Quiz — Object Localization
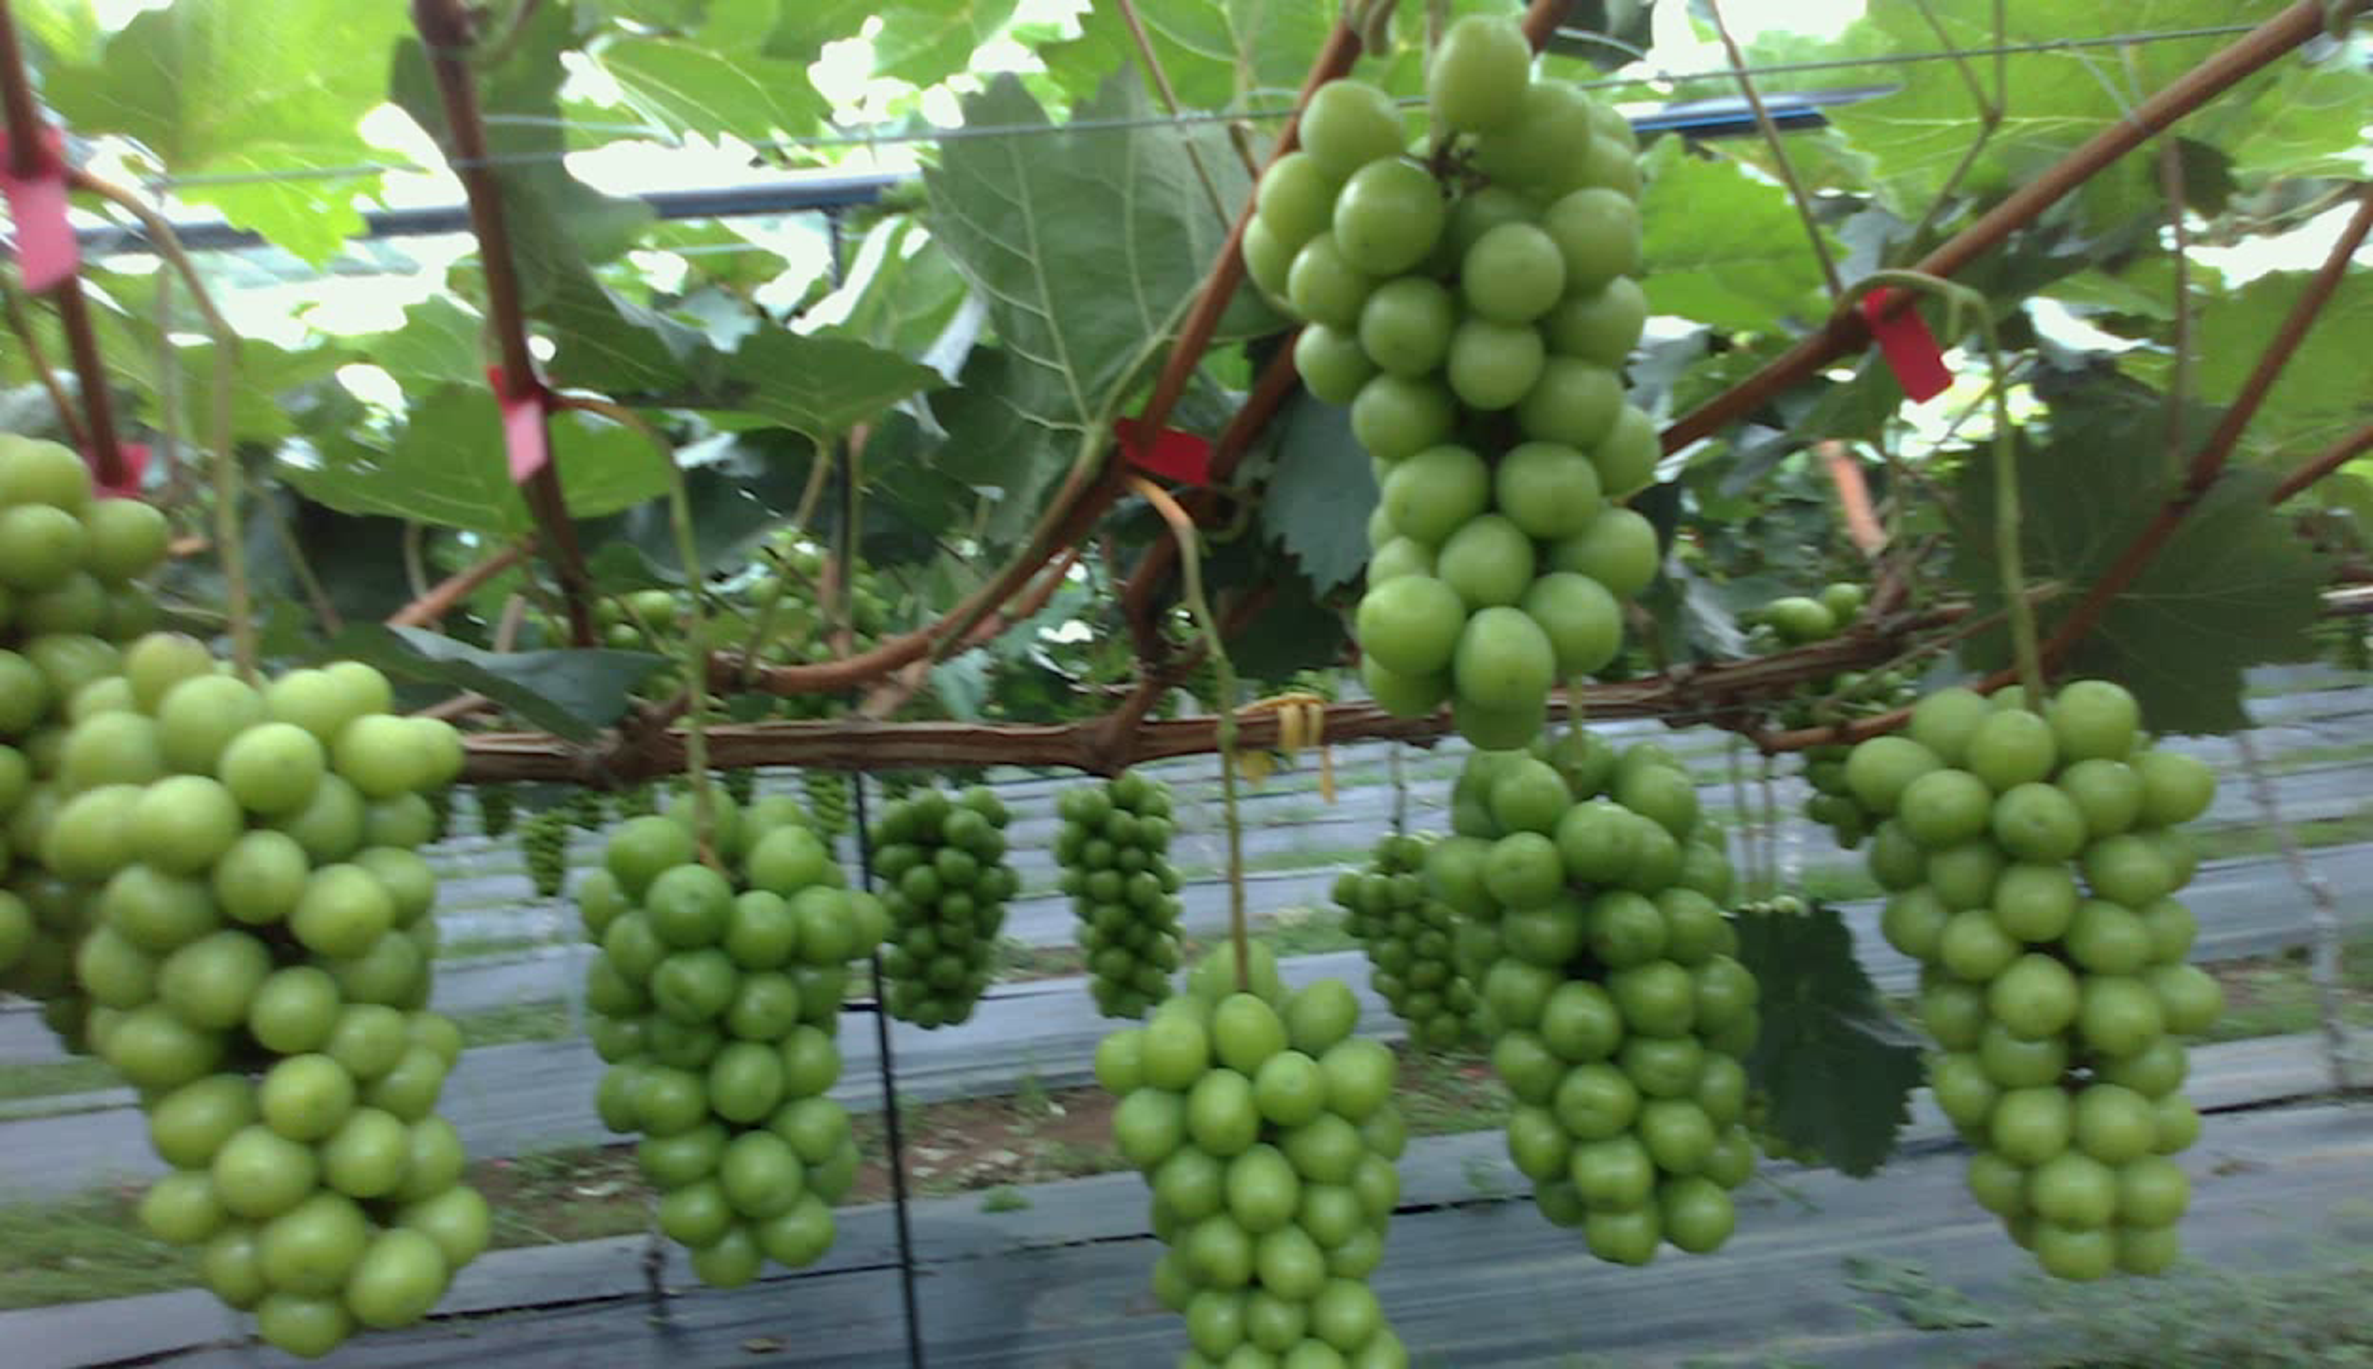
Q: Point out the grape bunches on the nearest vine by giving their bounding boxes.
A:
[1426,738,1753,1263]
[42,631,489,1358]
[1091,935,1409,1367]
[1850,684,2215,1276]
[582,787,888,1289]
[1244,13,1660,747]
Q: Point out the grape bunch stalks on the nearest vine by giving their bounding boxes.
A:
[546,395,711,858]
[1833,266,2044,711]
[1124,470,1253,991]
[61,164,253,681]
